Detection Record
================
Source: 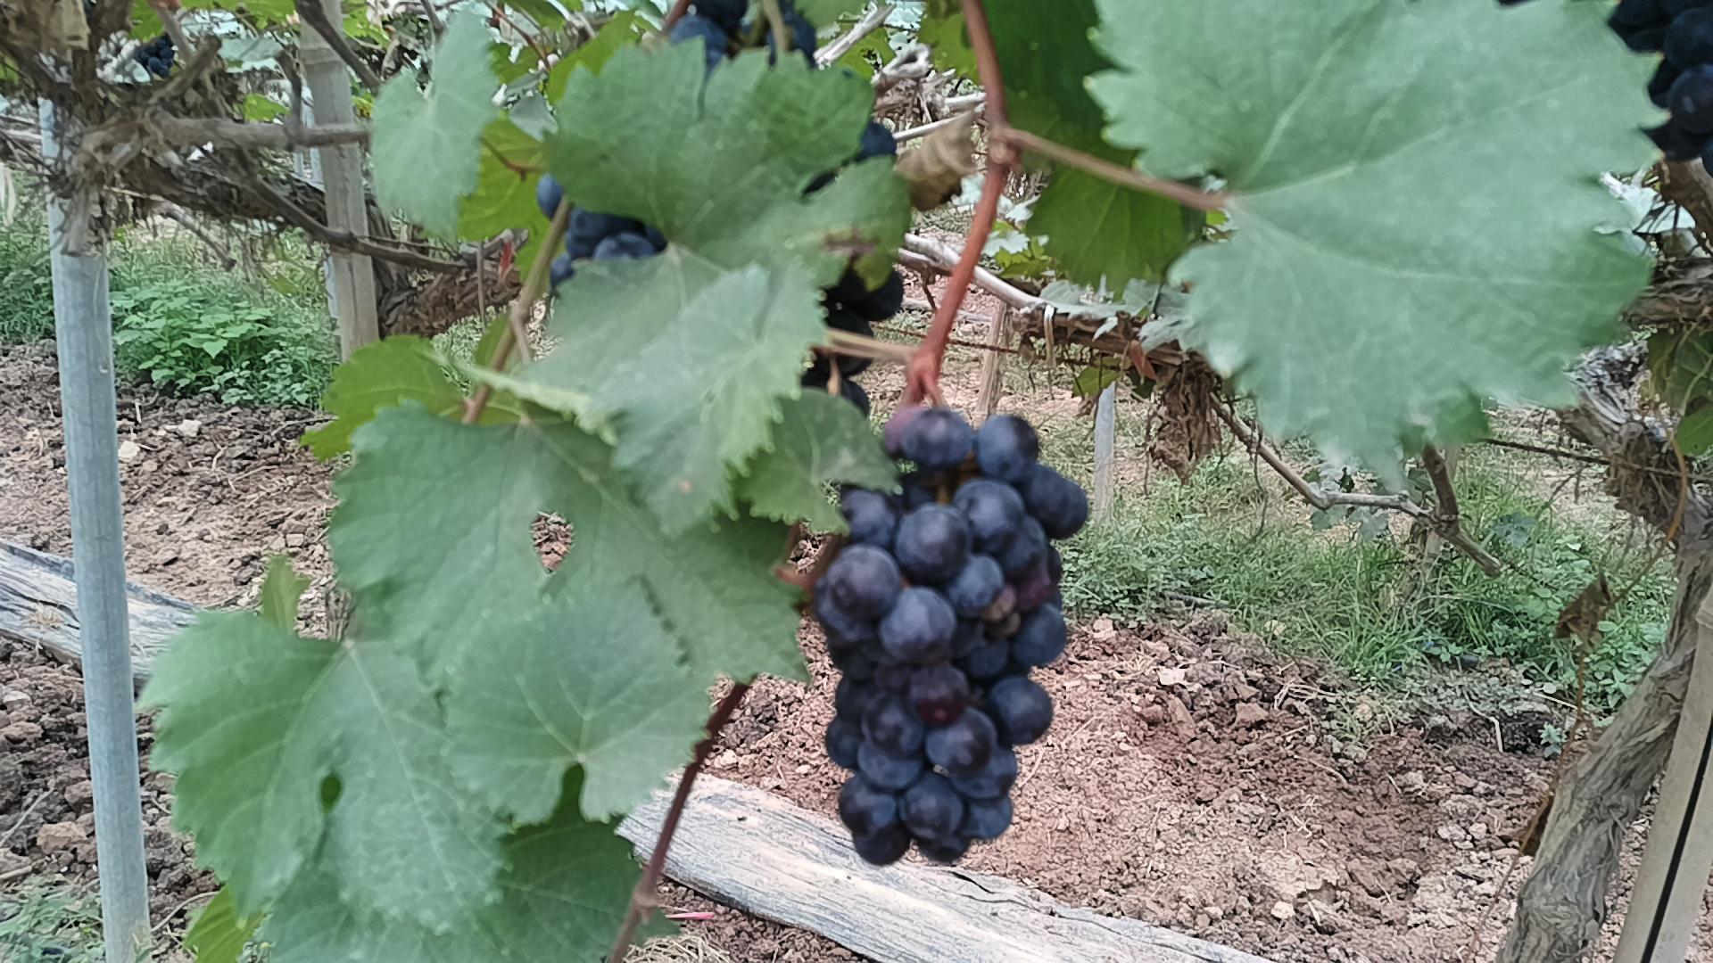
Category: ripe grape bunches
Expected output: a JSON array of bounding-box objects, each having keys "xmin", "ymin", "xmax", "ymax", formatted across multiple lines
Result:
[
  {"xmin": 1608, "ymin": 0, "xmax": 1712, "ymax": 174},
  {"xmin": 814, "ymin": 407, "xmax": 1088, "ymax": 863},
  {"xmin": 134, "ymin": 33, "xmax": 178, "ymax": 78},
  {"xmin": 536, "ymin": 0, "xmax": 909, "ymax": 417}
]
